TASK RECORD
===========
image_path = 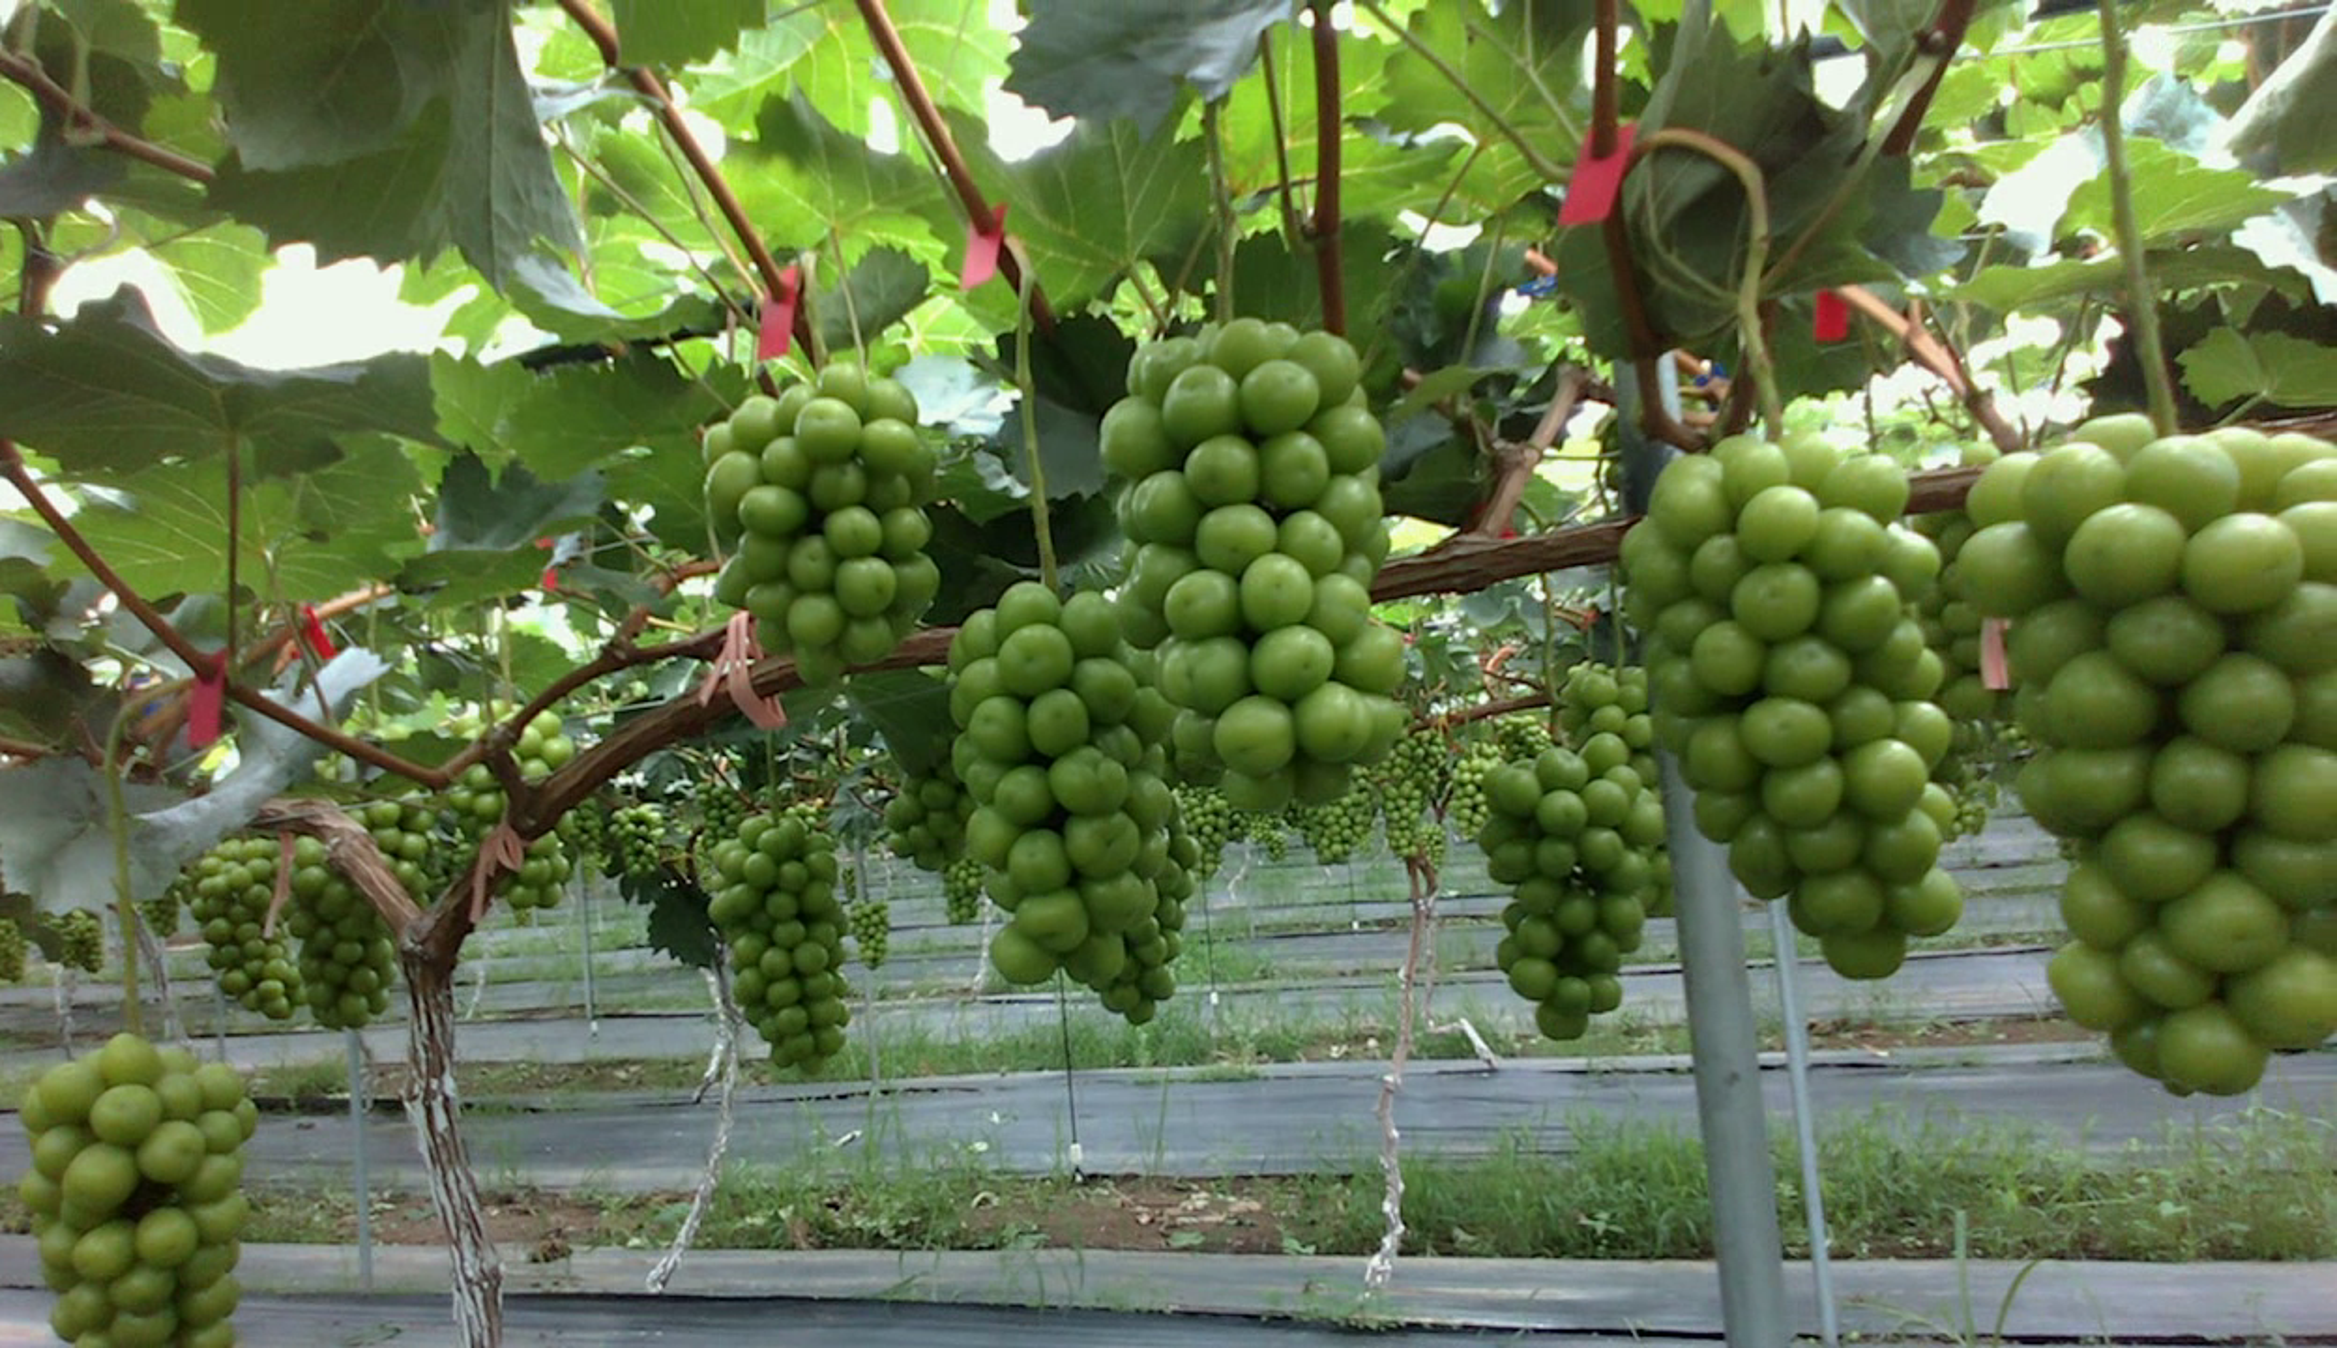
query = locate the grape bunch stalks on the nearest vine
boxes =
[1006,236,1062,601]
[800,253,831,378]
[1202,97,1232,328]
[1627,129,1785,444]
[103,676,189,1035]
[2097,0,2182,436]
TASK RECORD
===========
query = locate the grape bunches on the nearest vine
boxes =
[1955,414,2335,1099]
[1097,316,1408,814]
[15,1032,258,1346]
[1618,431,1966,979]
[698,363,940,689]
[946,582,1174,989]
